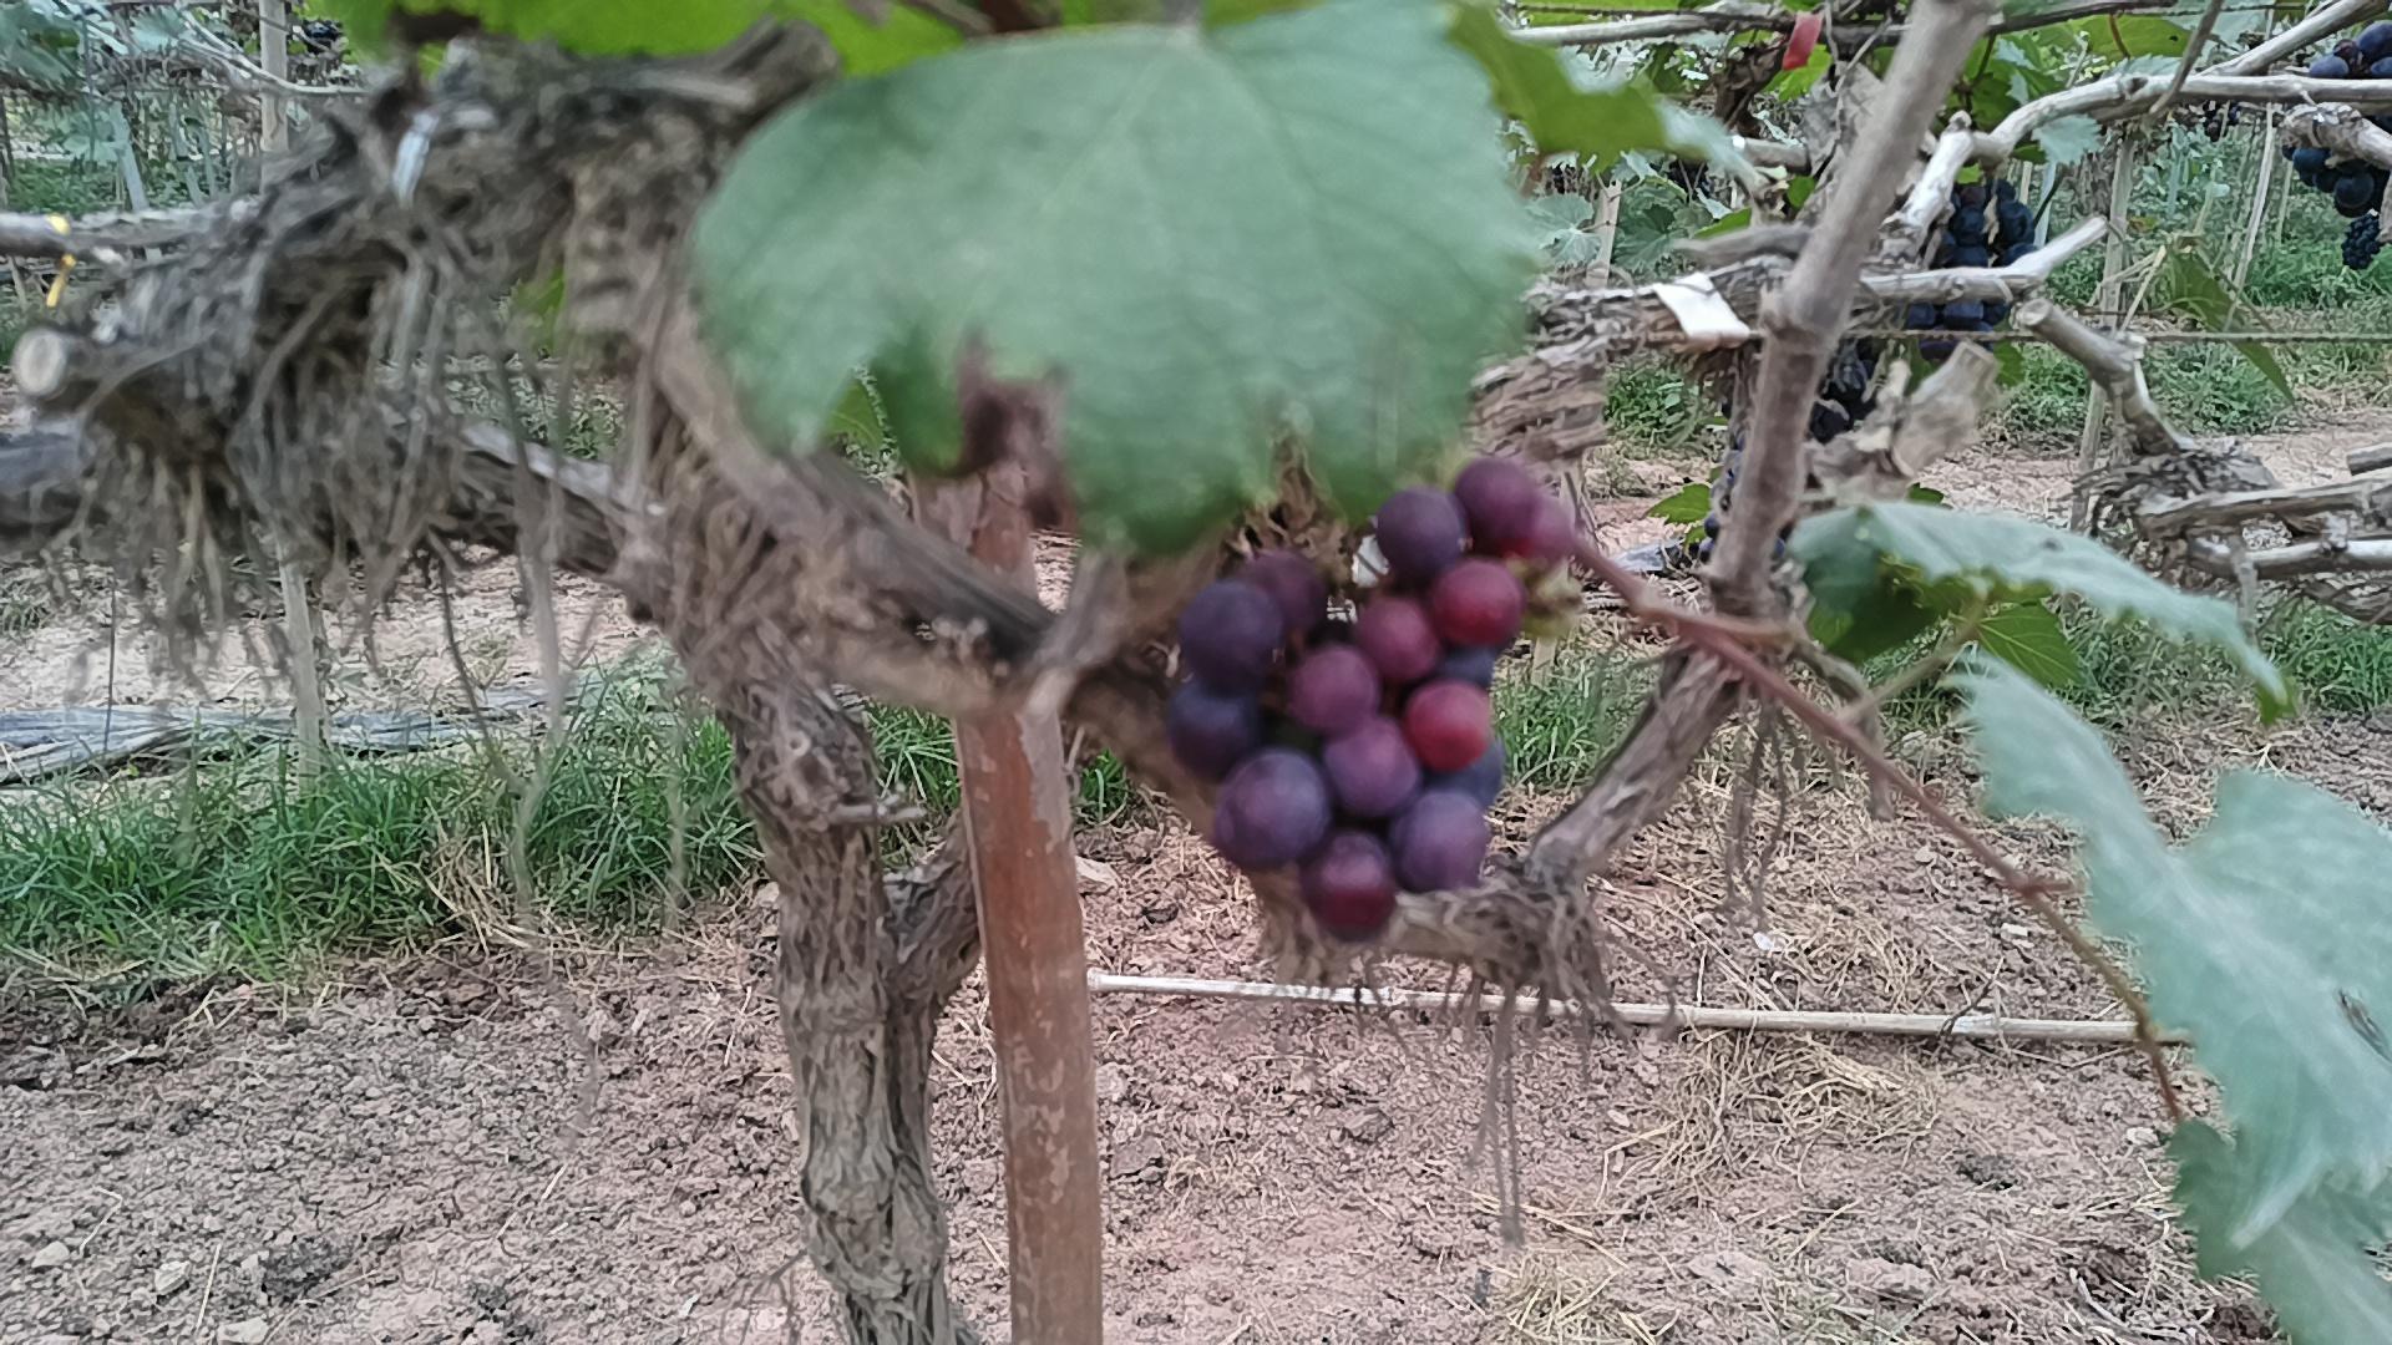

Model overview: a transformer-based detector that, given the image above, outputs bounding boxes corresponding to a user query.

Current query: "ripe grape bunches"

[1906,178,2039,361]
[1167,457,1573,940]
[2280,19,2391,218]
[2341,209,2385,271]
